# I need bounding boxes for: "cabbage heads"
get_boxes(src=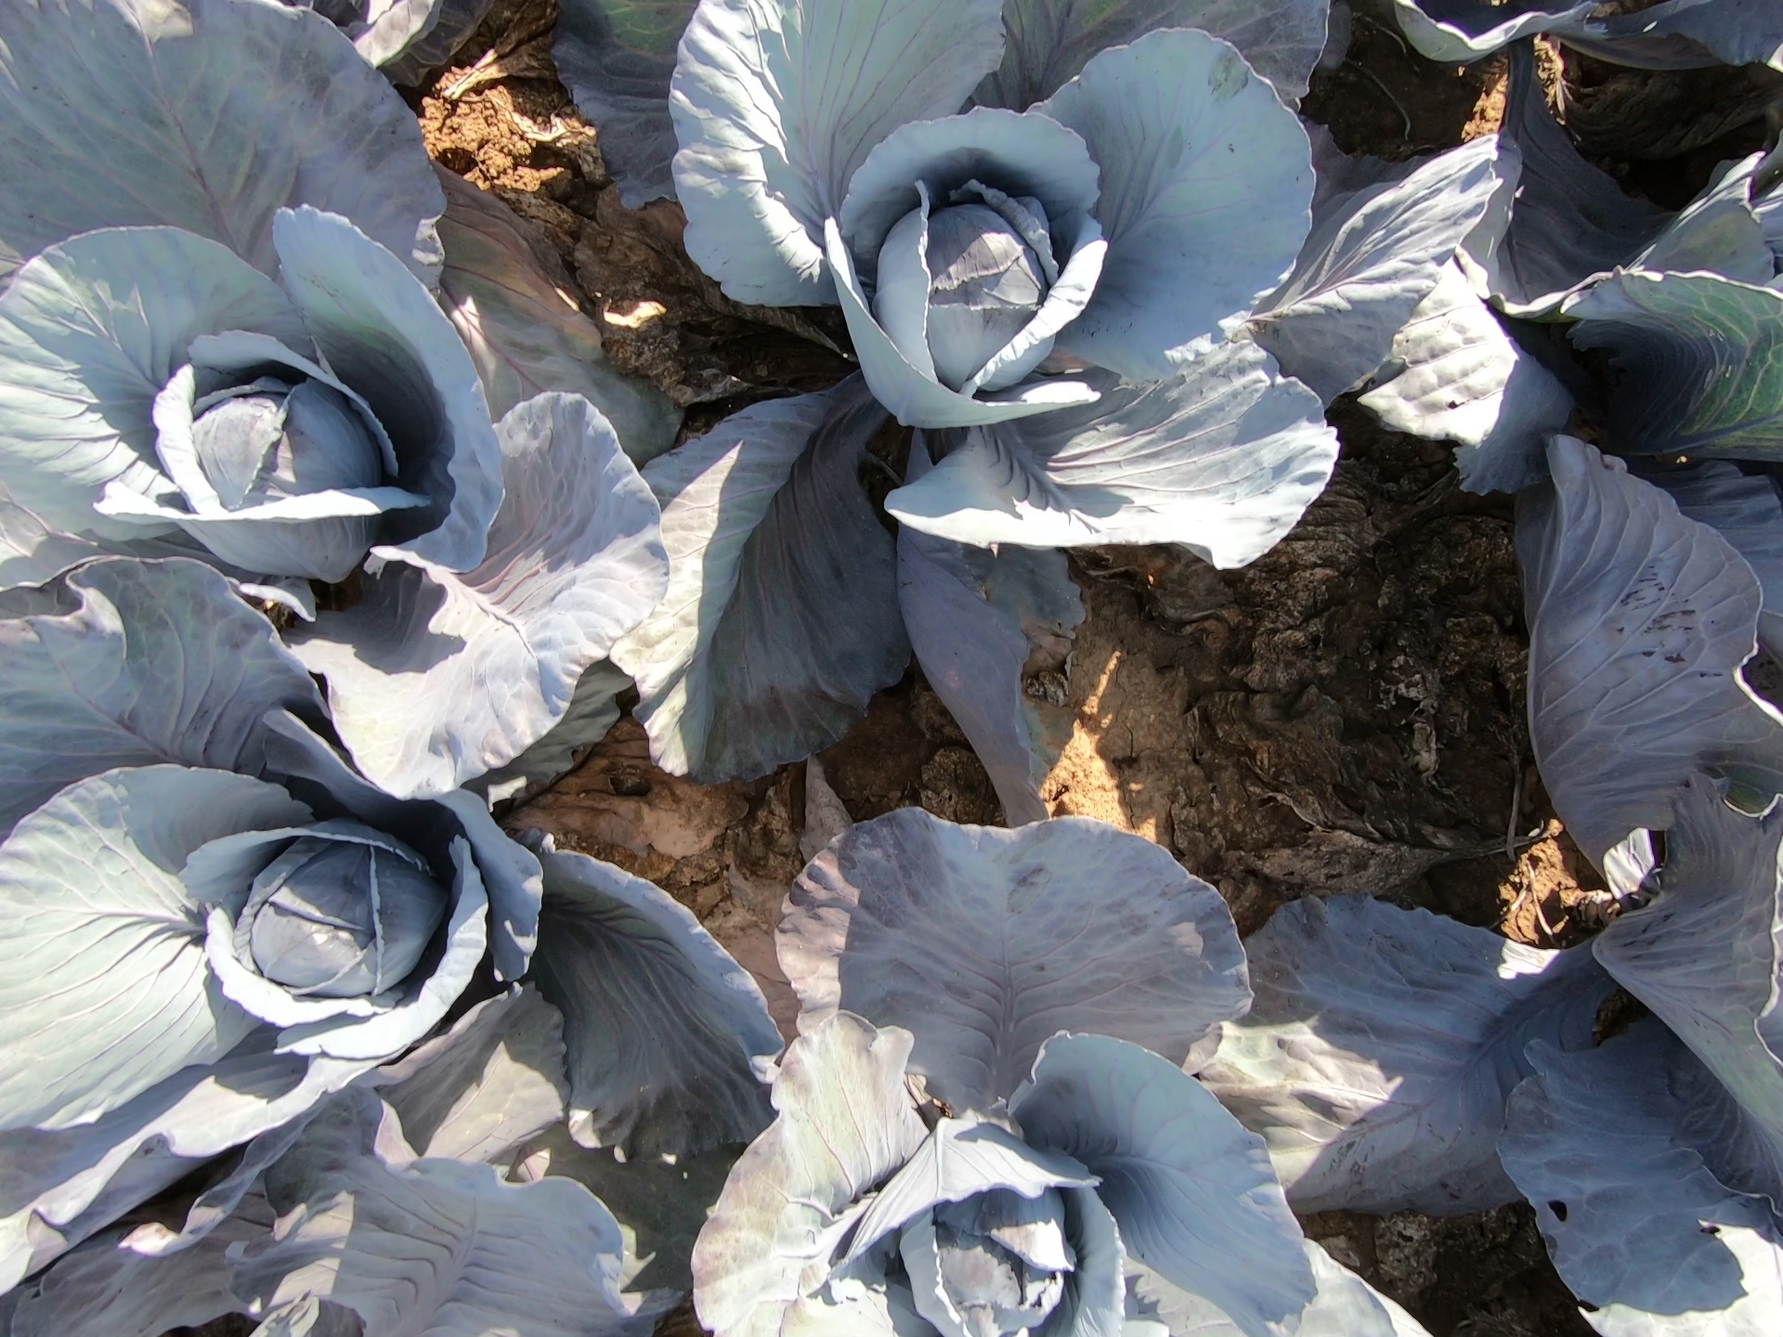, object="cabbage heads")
[180,381,384,565]
[904,1149,1067,1331]
[889,201,1054,380]
[240,824,429,1003]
